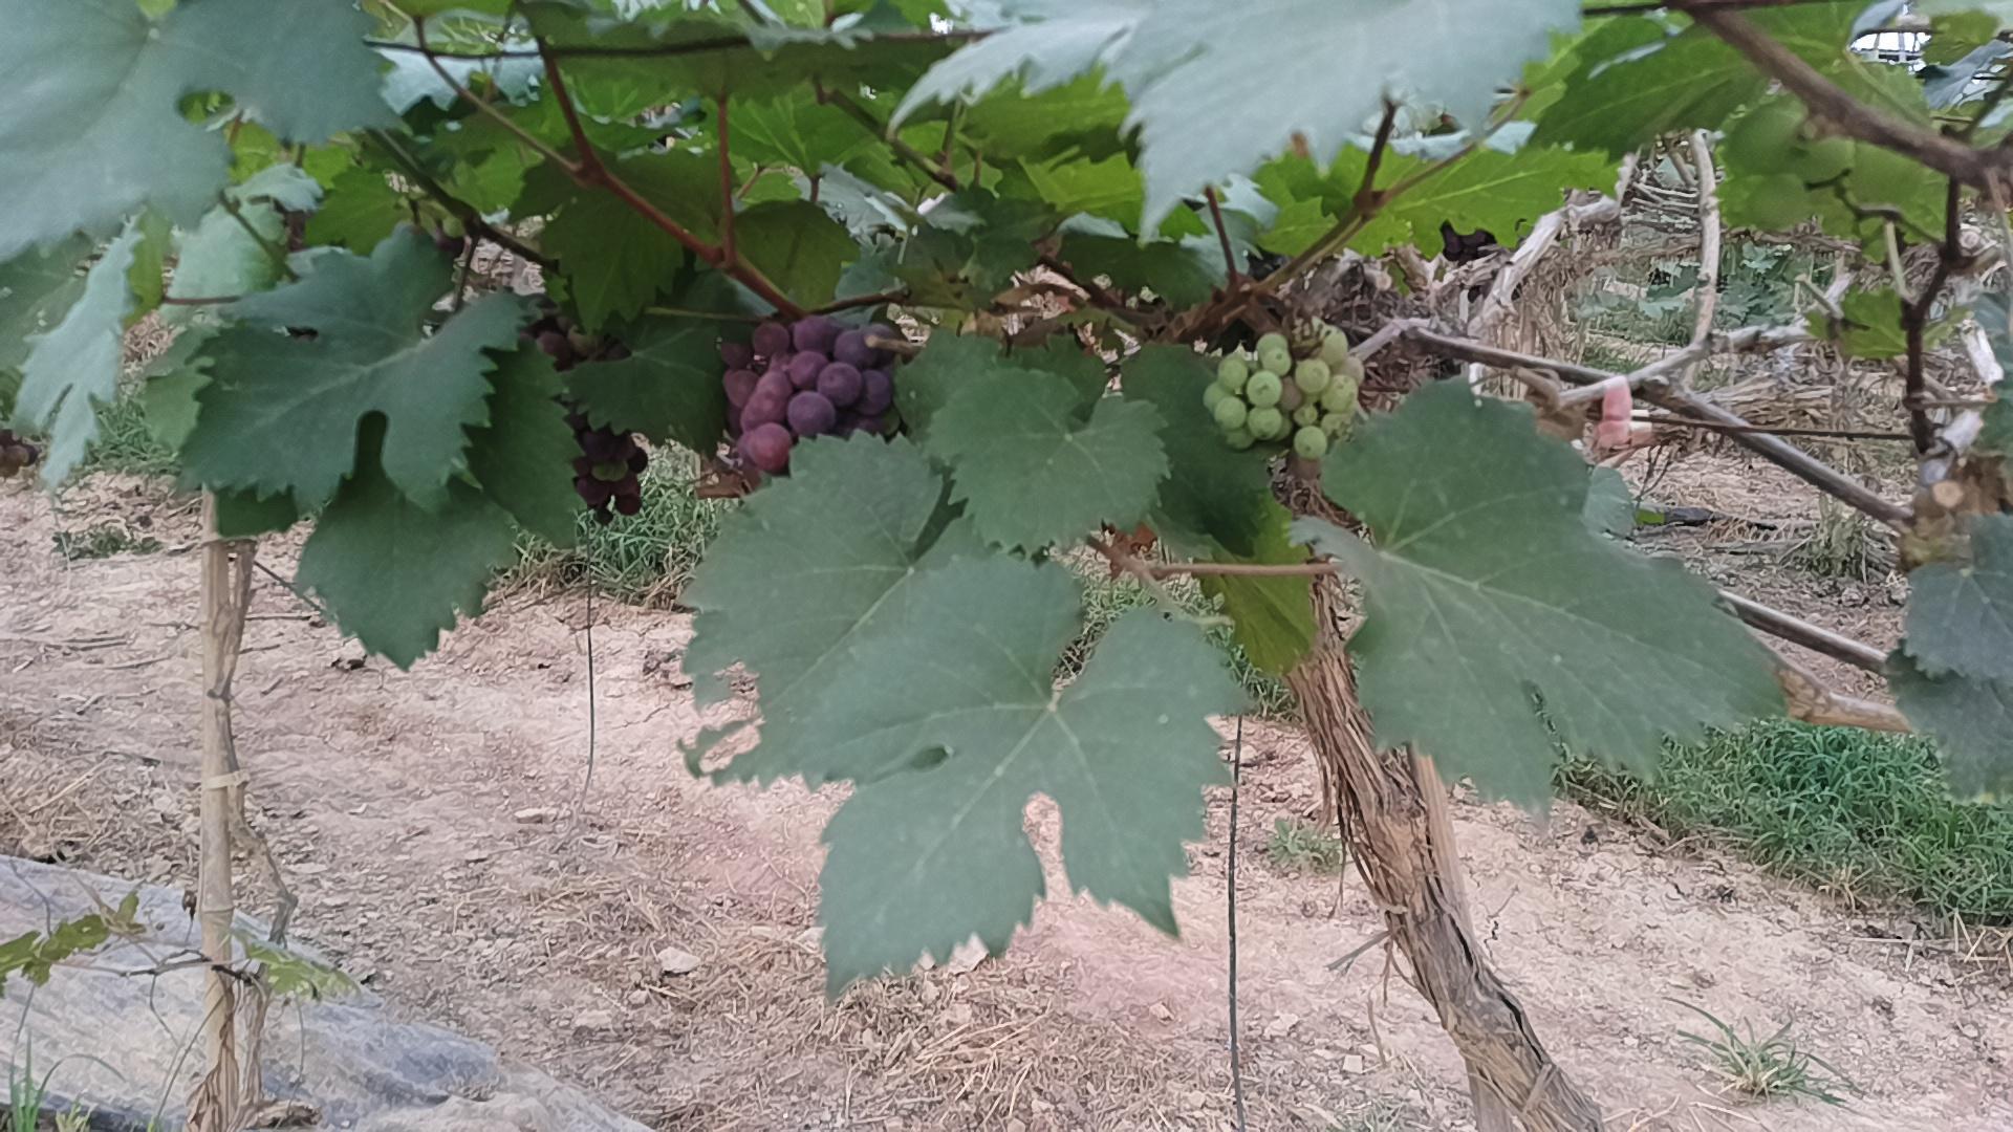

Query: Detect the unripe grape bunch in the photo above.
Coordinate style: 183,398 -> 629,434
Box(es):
1204,324 -> 1363,461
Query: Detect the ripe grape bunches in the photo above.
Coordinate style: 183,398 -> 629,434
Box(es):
0,428 -> 40,477
721,317 -> 897,474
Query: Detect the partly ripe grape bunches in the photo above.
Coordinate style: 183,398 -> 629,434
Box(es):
522,297 -> 648,524
436,216 -> 464,256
